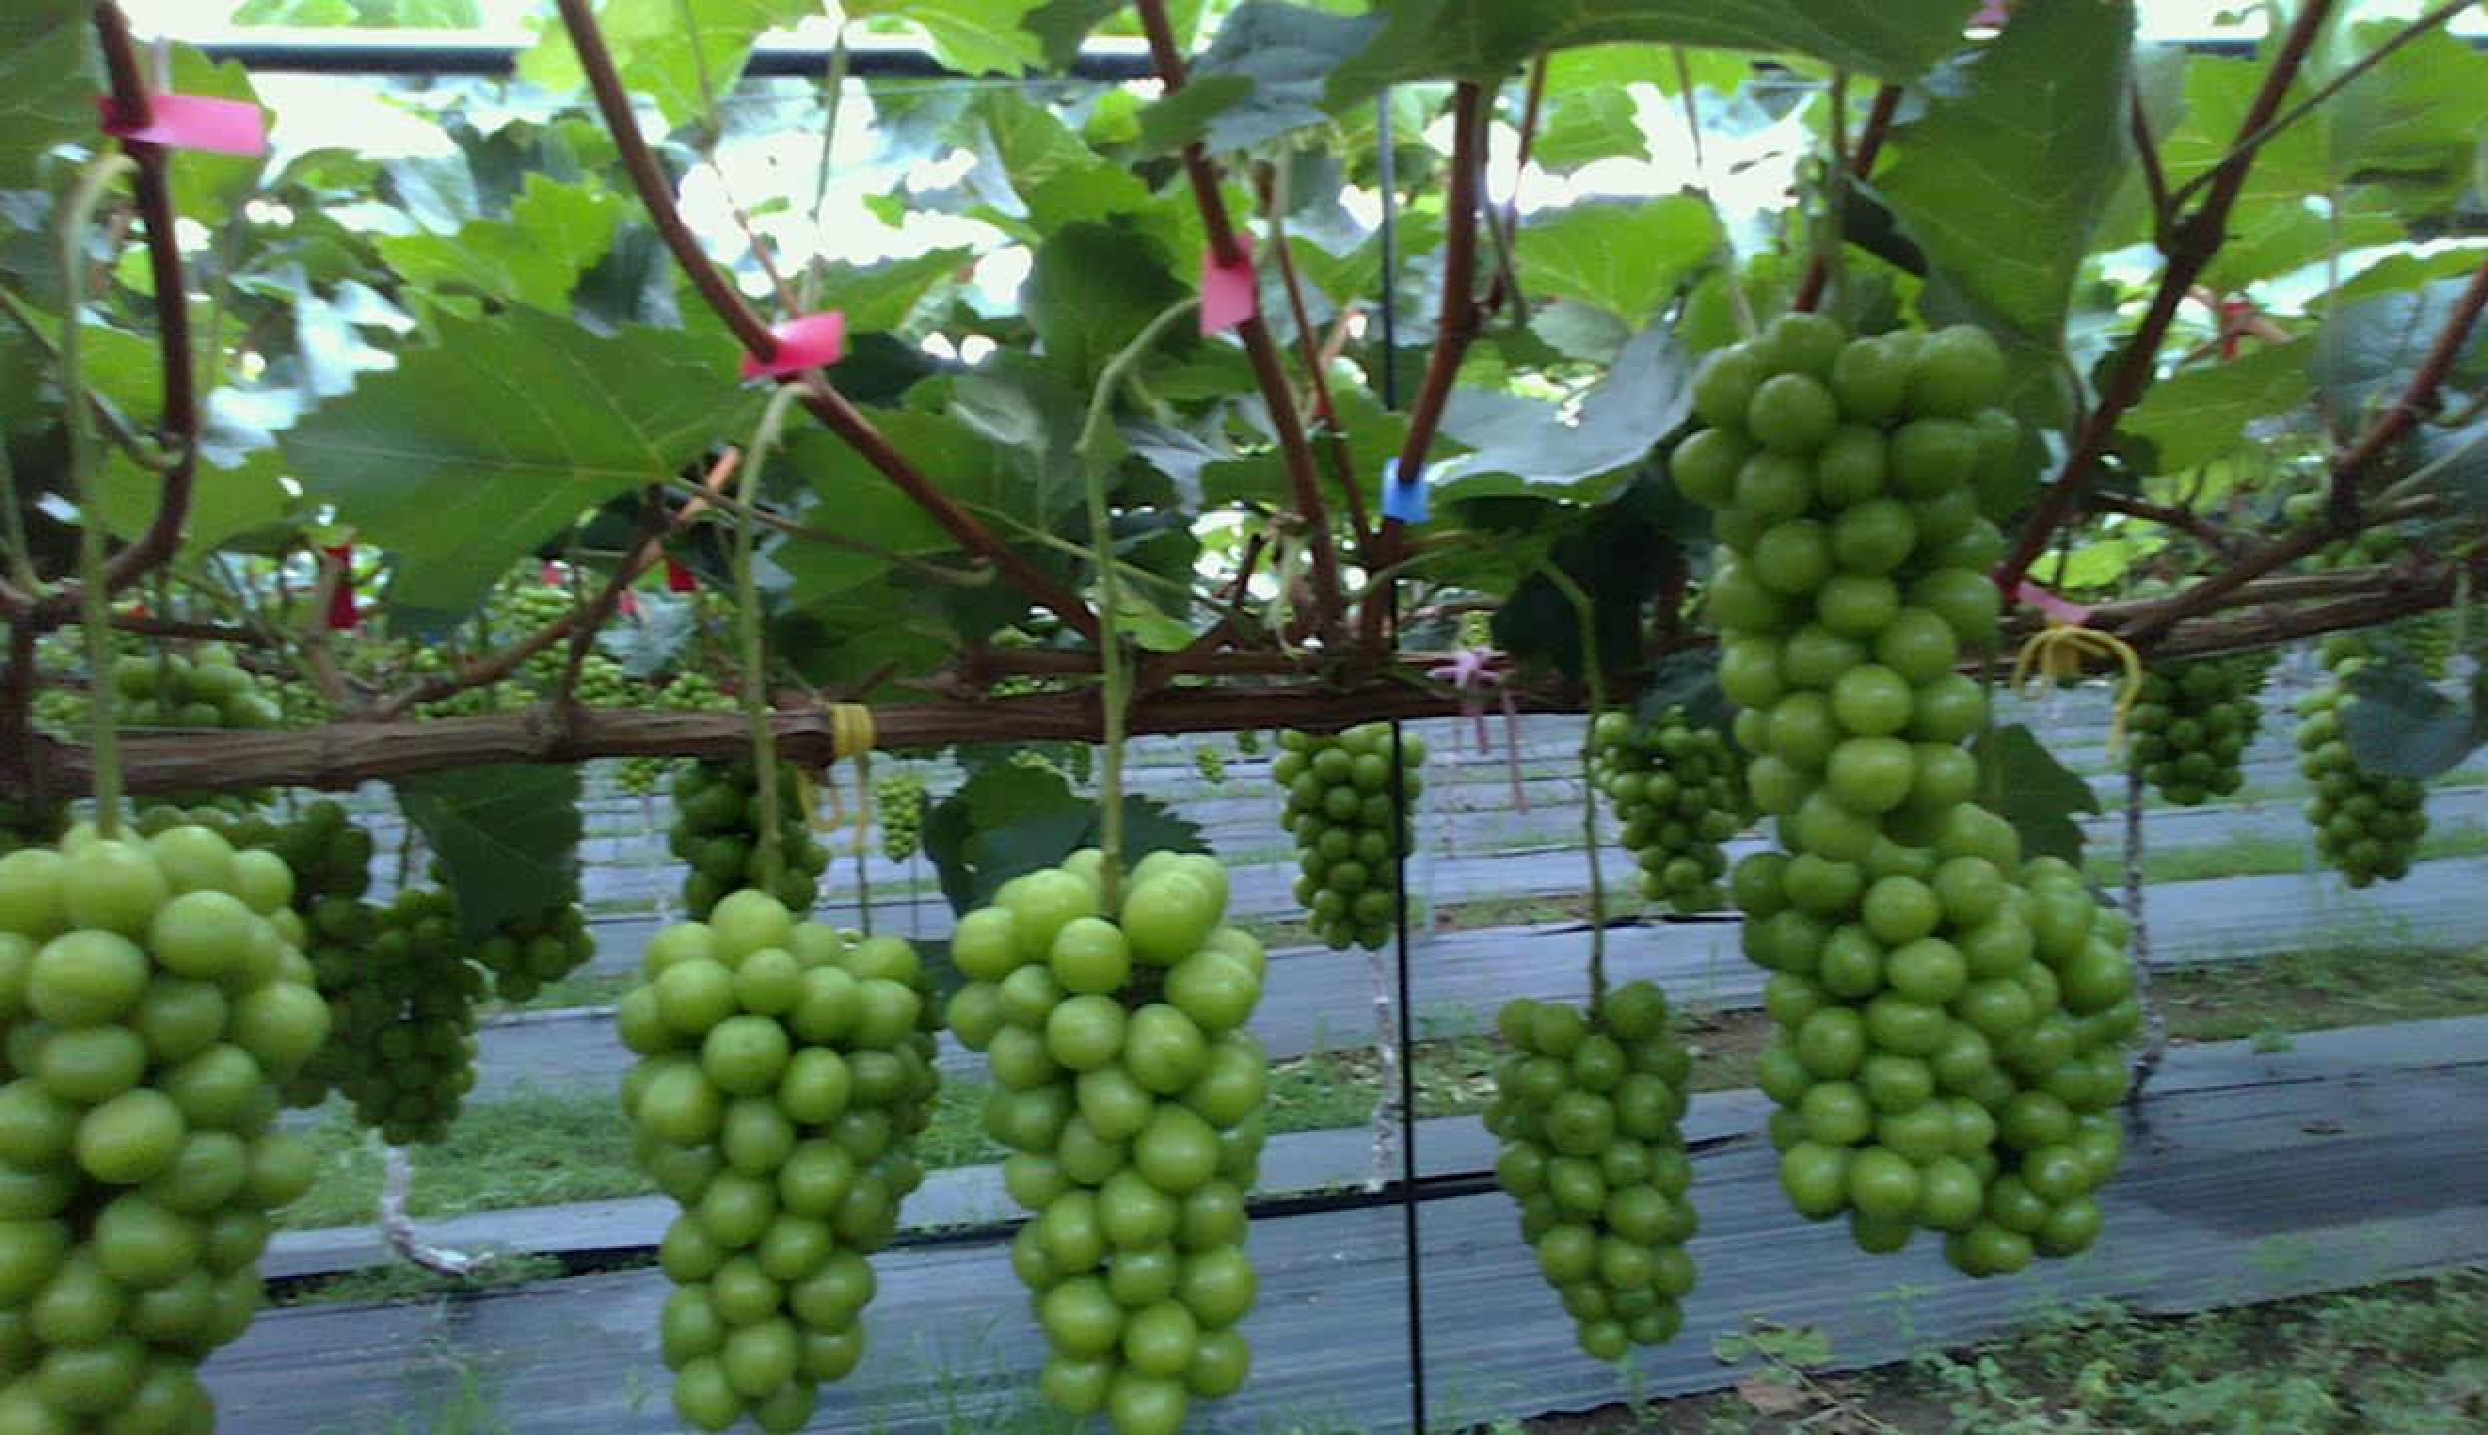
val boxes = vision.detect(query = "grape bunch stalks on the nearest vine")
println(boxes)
[1826,68,1854,331]
[56,153,120,839]
[1463,532,1605,1026]
[734,381,801,899]
[1982,640,2004,813]
[1065,297,1200,923]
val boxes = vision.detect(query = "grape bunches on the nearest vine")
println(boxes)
[1732,801,2035,1258]
[0,825,329,1433]
[951,849,1268,1433]
[1938,857,2141,1278]
[1669,313,2023,863]
[1481,981,1699,1361]
[616,891,927,1433]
